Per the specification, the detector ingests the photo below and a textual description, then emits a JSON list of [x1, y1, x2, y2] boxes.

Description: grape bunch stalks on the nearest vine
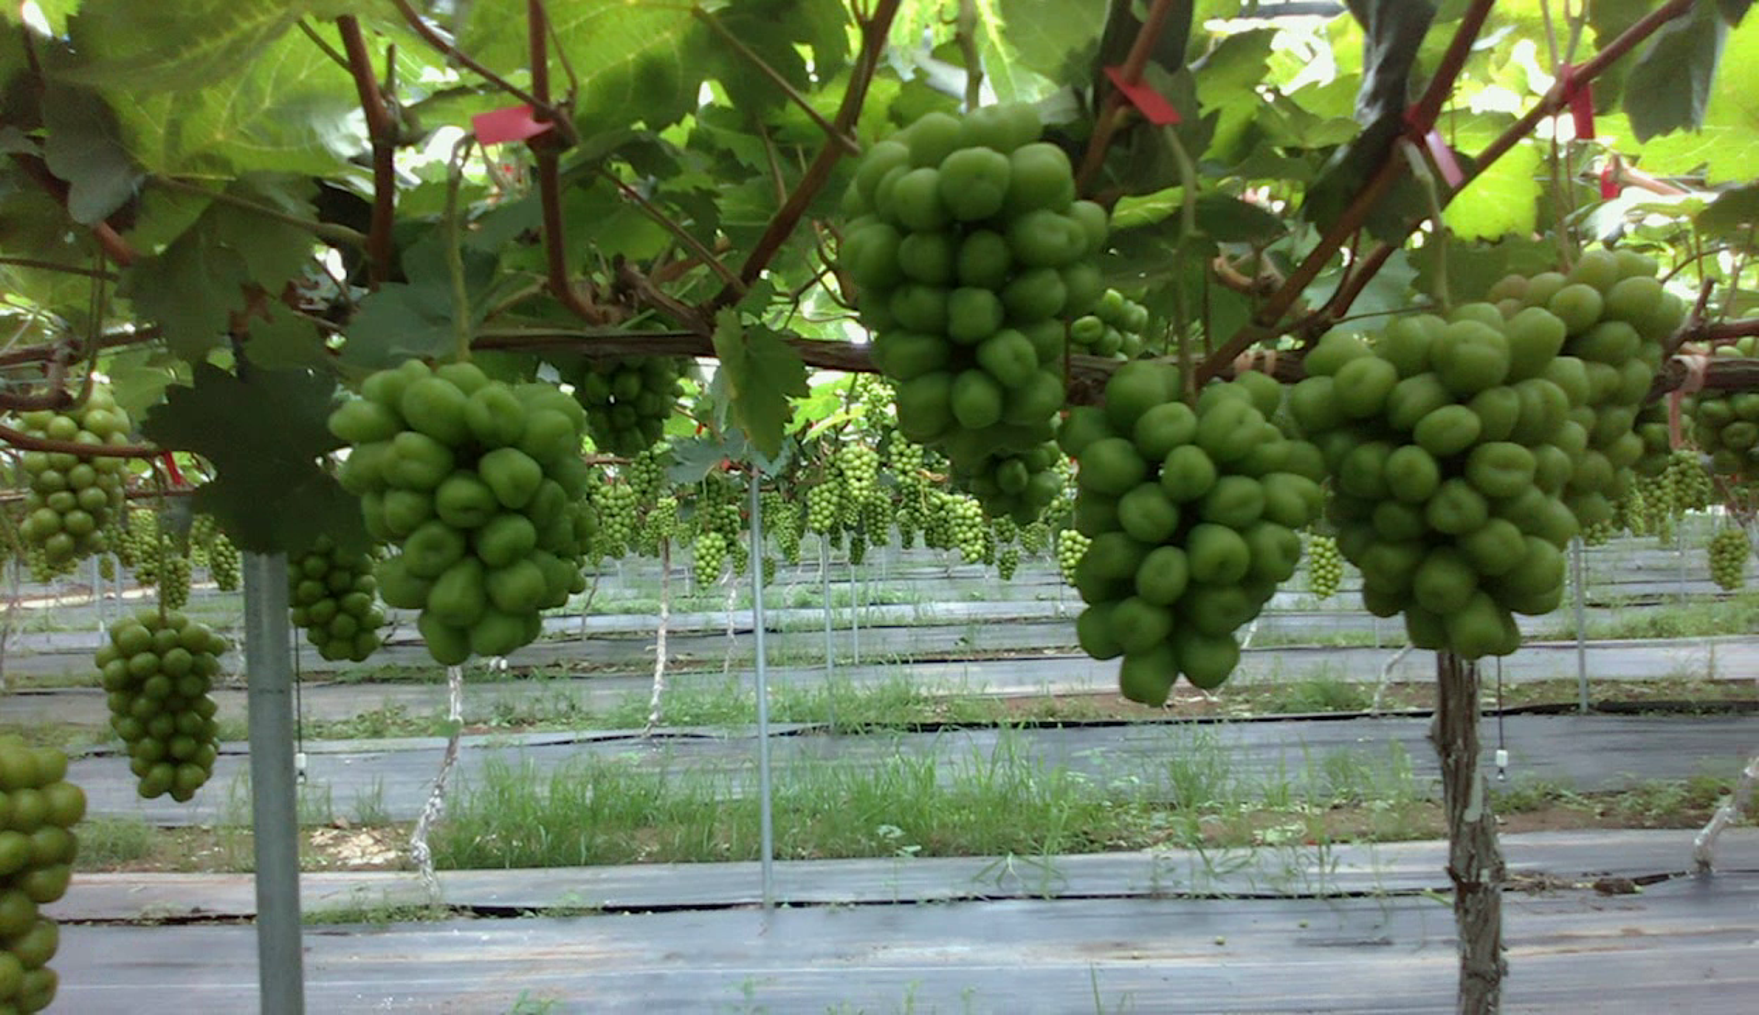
[[1398, 141, 1450, 324], [1545, 76, 1572, 278], [440, 131, 475, 364], [1153, 124, 1205, 407], [957, 1, 982, 113]]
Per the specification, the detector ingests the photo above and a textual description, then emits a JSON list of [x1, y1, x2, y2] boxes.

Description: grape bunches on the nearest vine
[[327, 357, 600, 668], [3, 733, 86, 1014], [1287, 303, 1597, 661], [837, 100, 1109, 462], [1486, 248, 1681, 527], [1057, 359, 1323, 708]]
